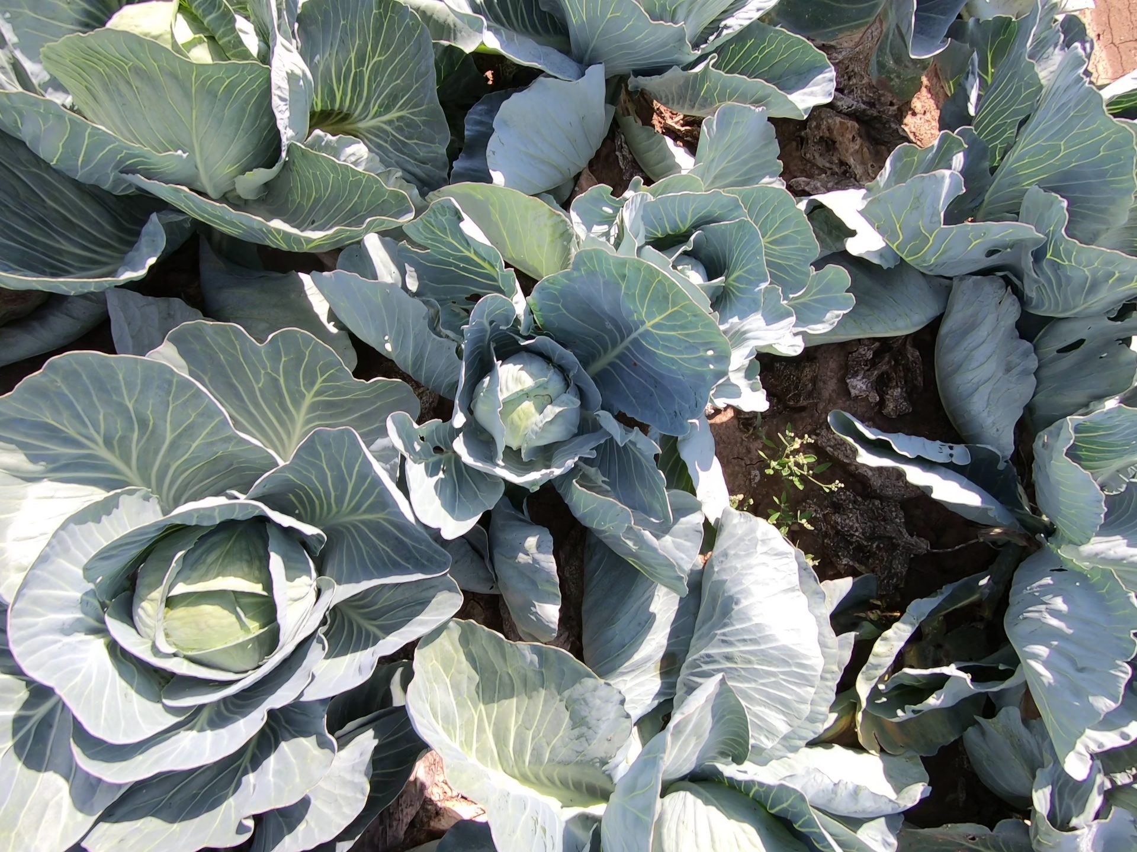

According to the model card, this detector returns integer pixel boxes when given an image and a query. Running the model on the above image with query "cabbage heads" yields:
[639,783,799,850]
[657,255,710,317]
[94,0,268,149]
[483,348,574,449]
[135,515,313,672]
